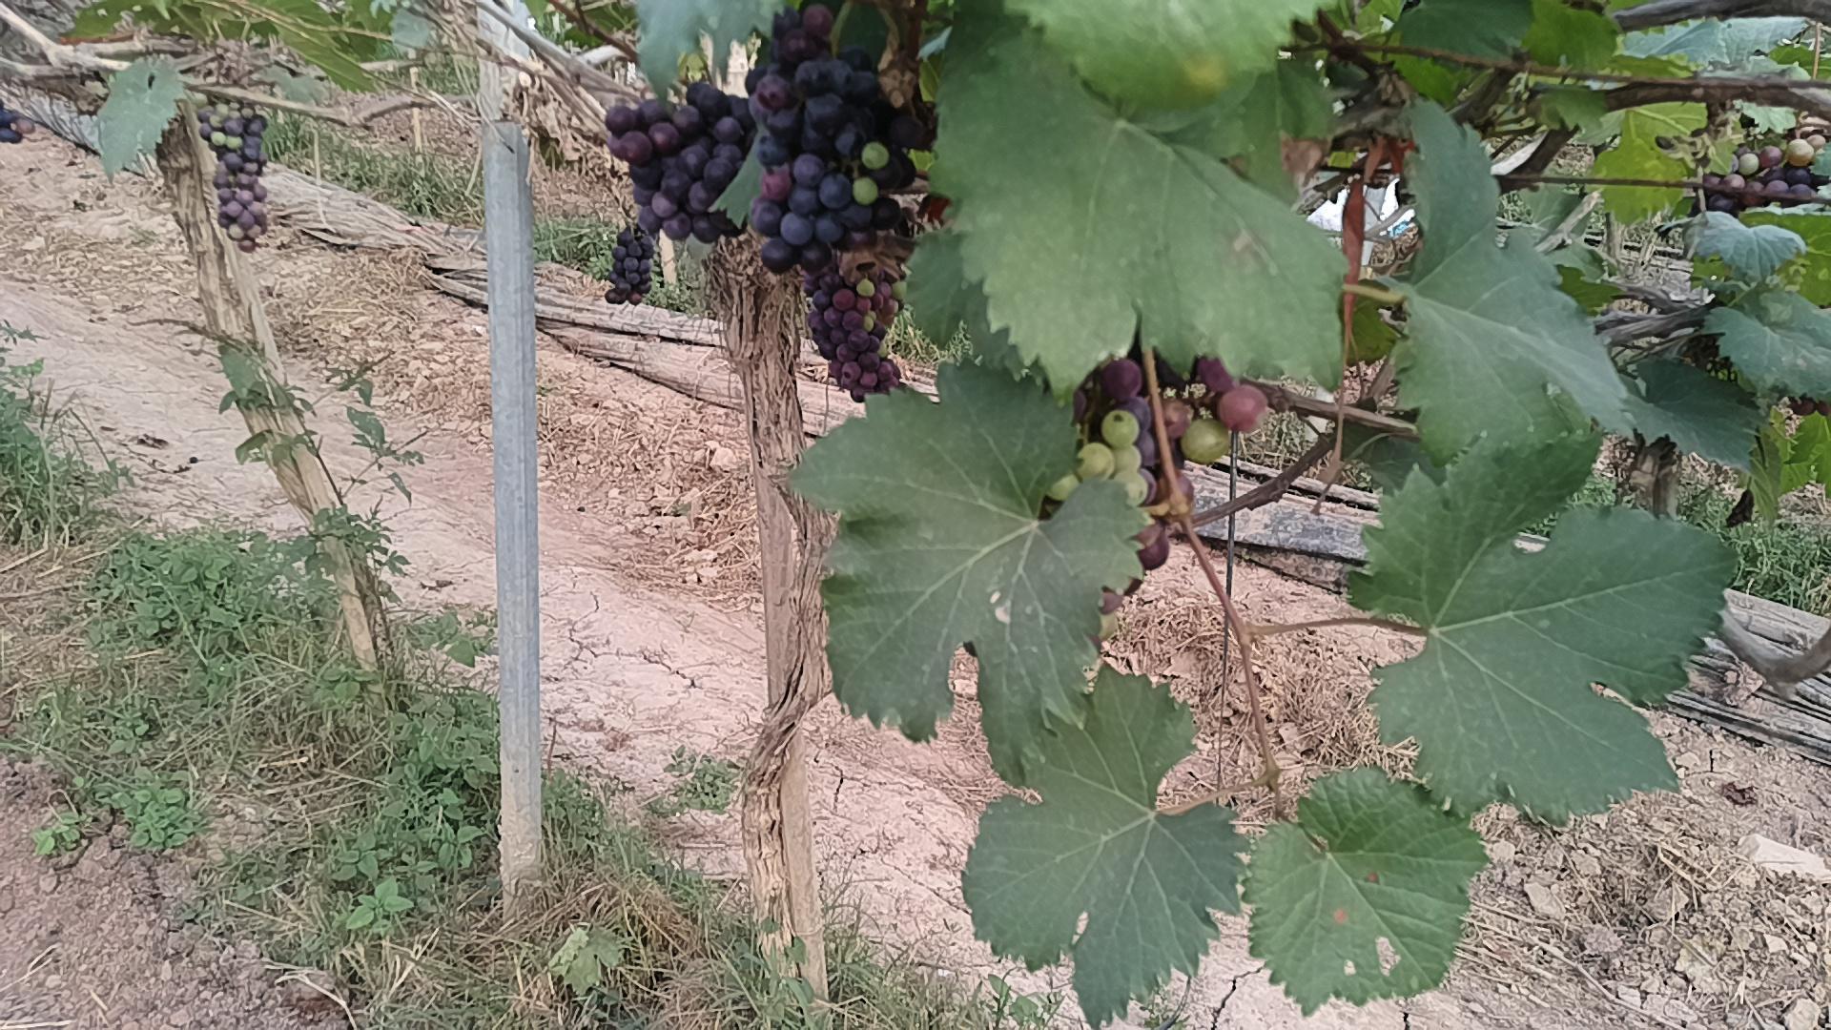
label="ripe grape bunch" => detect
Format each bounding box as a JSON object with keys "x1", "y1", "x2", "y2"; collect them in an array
[{"x1": 605, "y1": 81, "x2": 754, "y2": 303}]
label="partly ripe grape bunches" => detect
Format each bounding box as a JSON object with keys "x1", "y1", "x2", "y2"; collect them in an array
[
  {"x1": 747, "y1": 1, "x2": 934, "y2": 403},
  {"x1": 1041, "y1": 353, "x2": 1266, "y2": 569},
  {"x1": 199, "y1": 104, "x2": 269, "y2": 251},
  {"x1": 1697, "y1": 129, "x2": 1830, "y2": 216}
]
